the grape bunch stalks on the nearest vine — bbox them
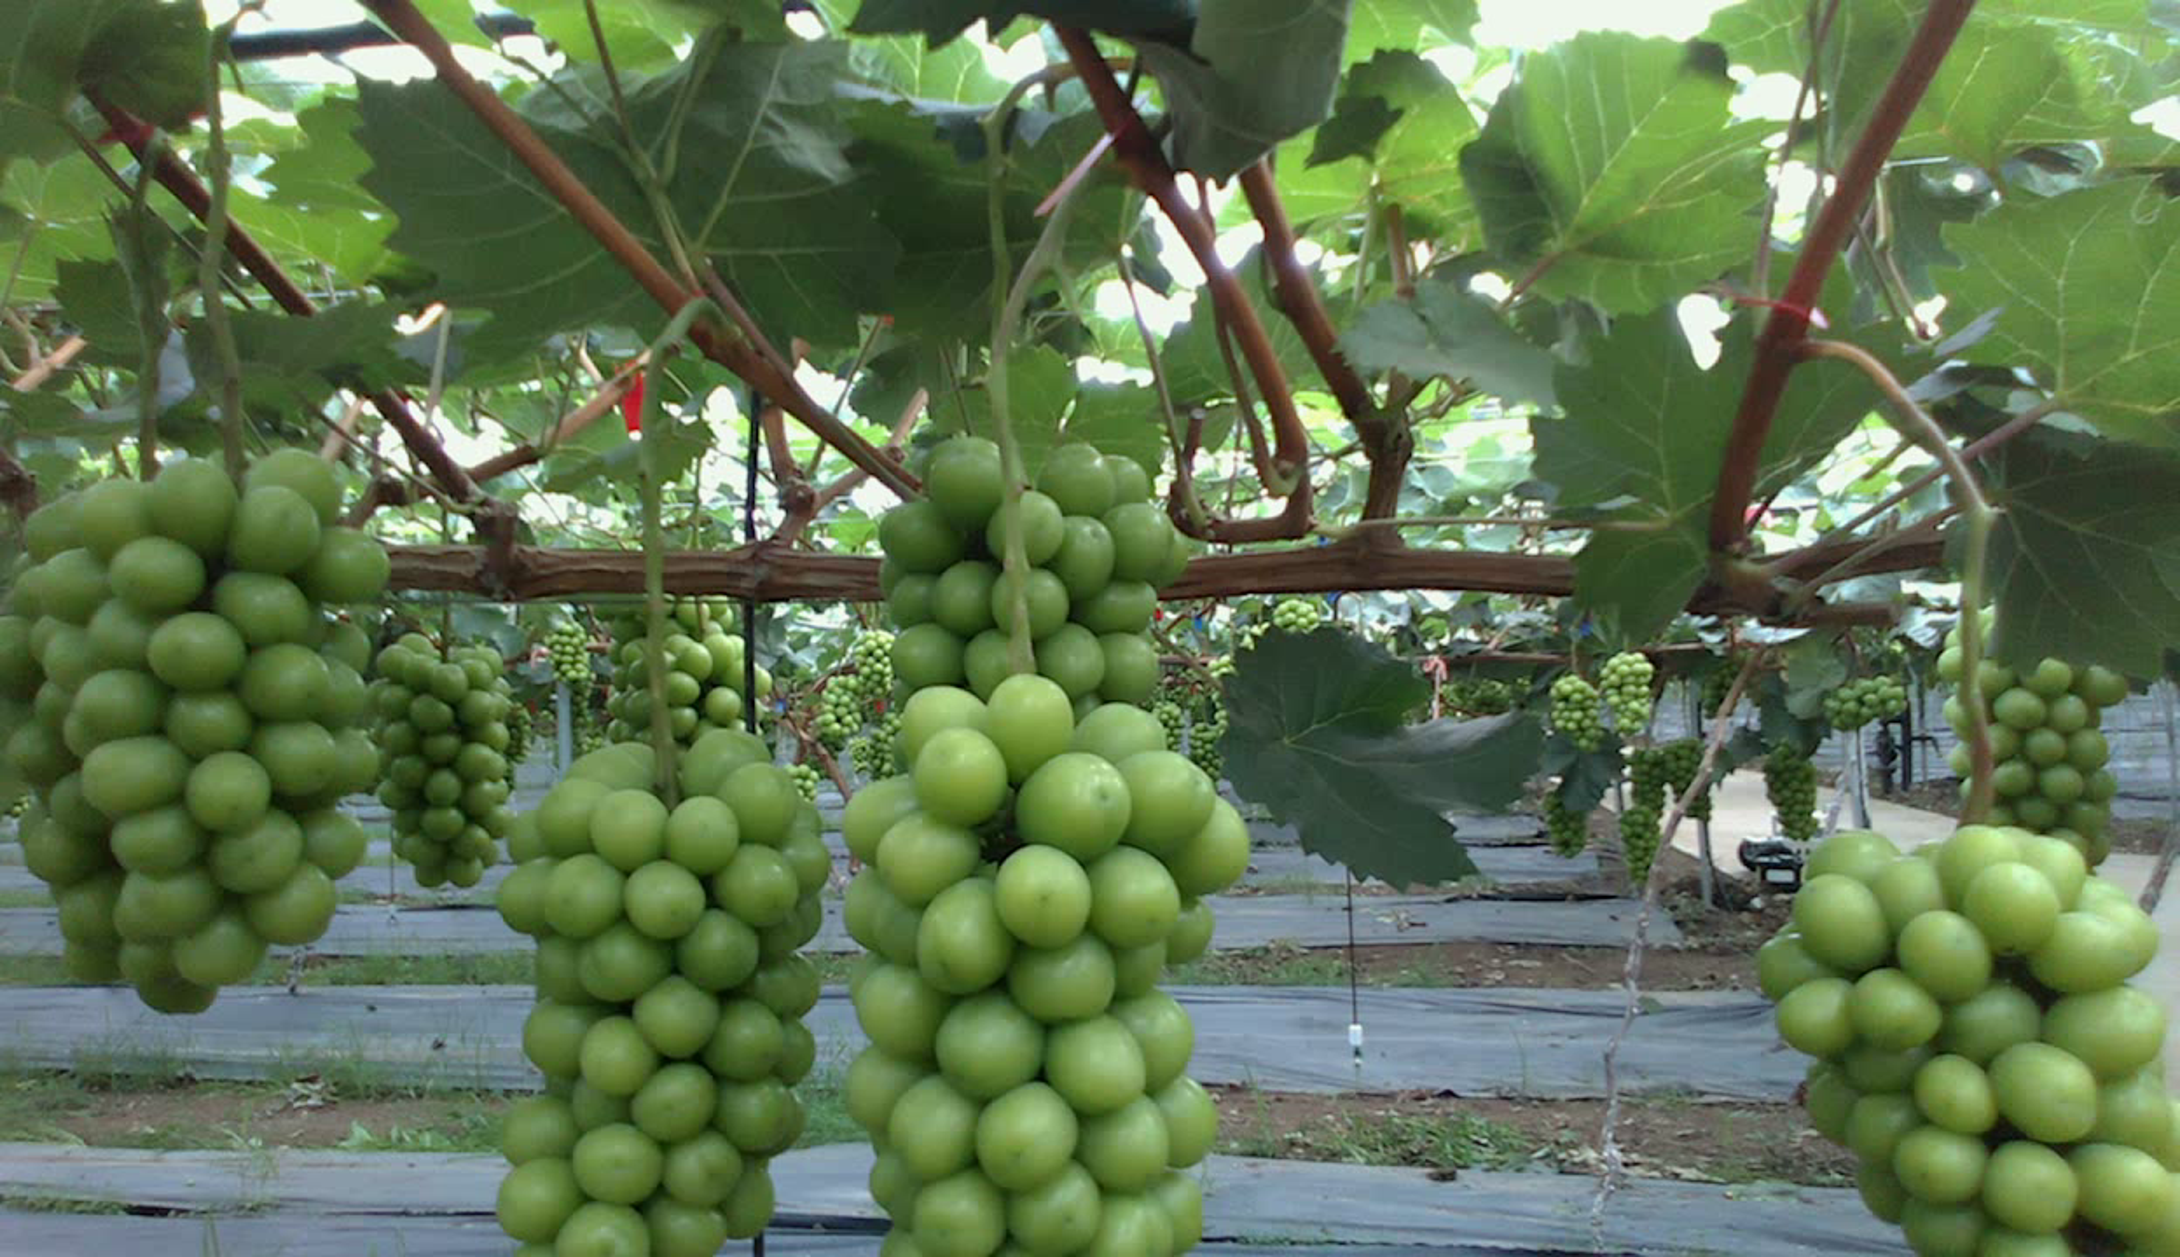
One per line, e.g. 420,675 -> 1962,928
1794,337 -> 1993,829
199,106 -> 243,484
969,161 -> 1144,670
639,297 -> 741,814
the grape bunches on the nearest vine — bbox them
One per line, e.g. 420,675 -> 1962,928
16,452 -> 391,1018
494,730 -> 826,1255
840,670 -> 1249,1255
0,594 -> 126,985
880,436 -> 1184,725
1757,826 -> 2175,1255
